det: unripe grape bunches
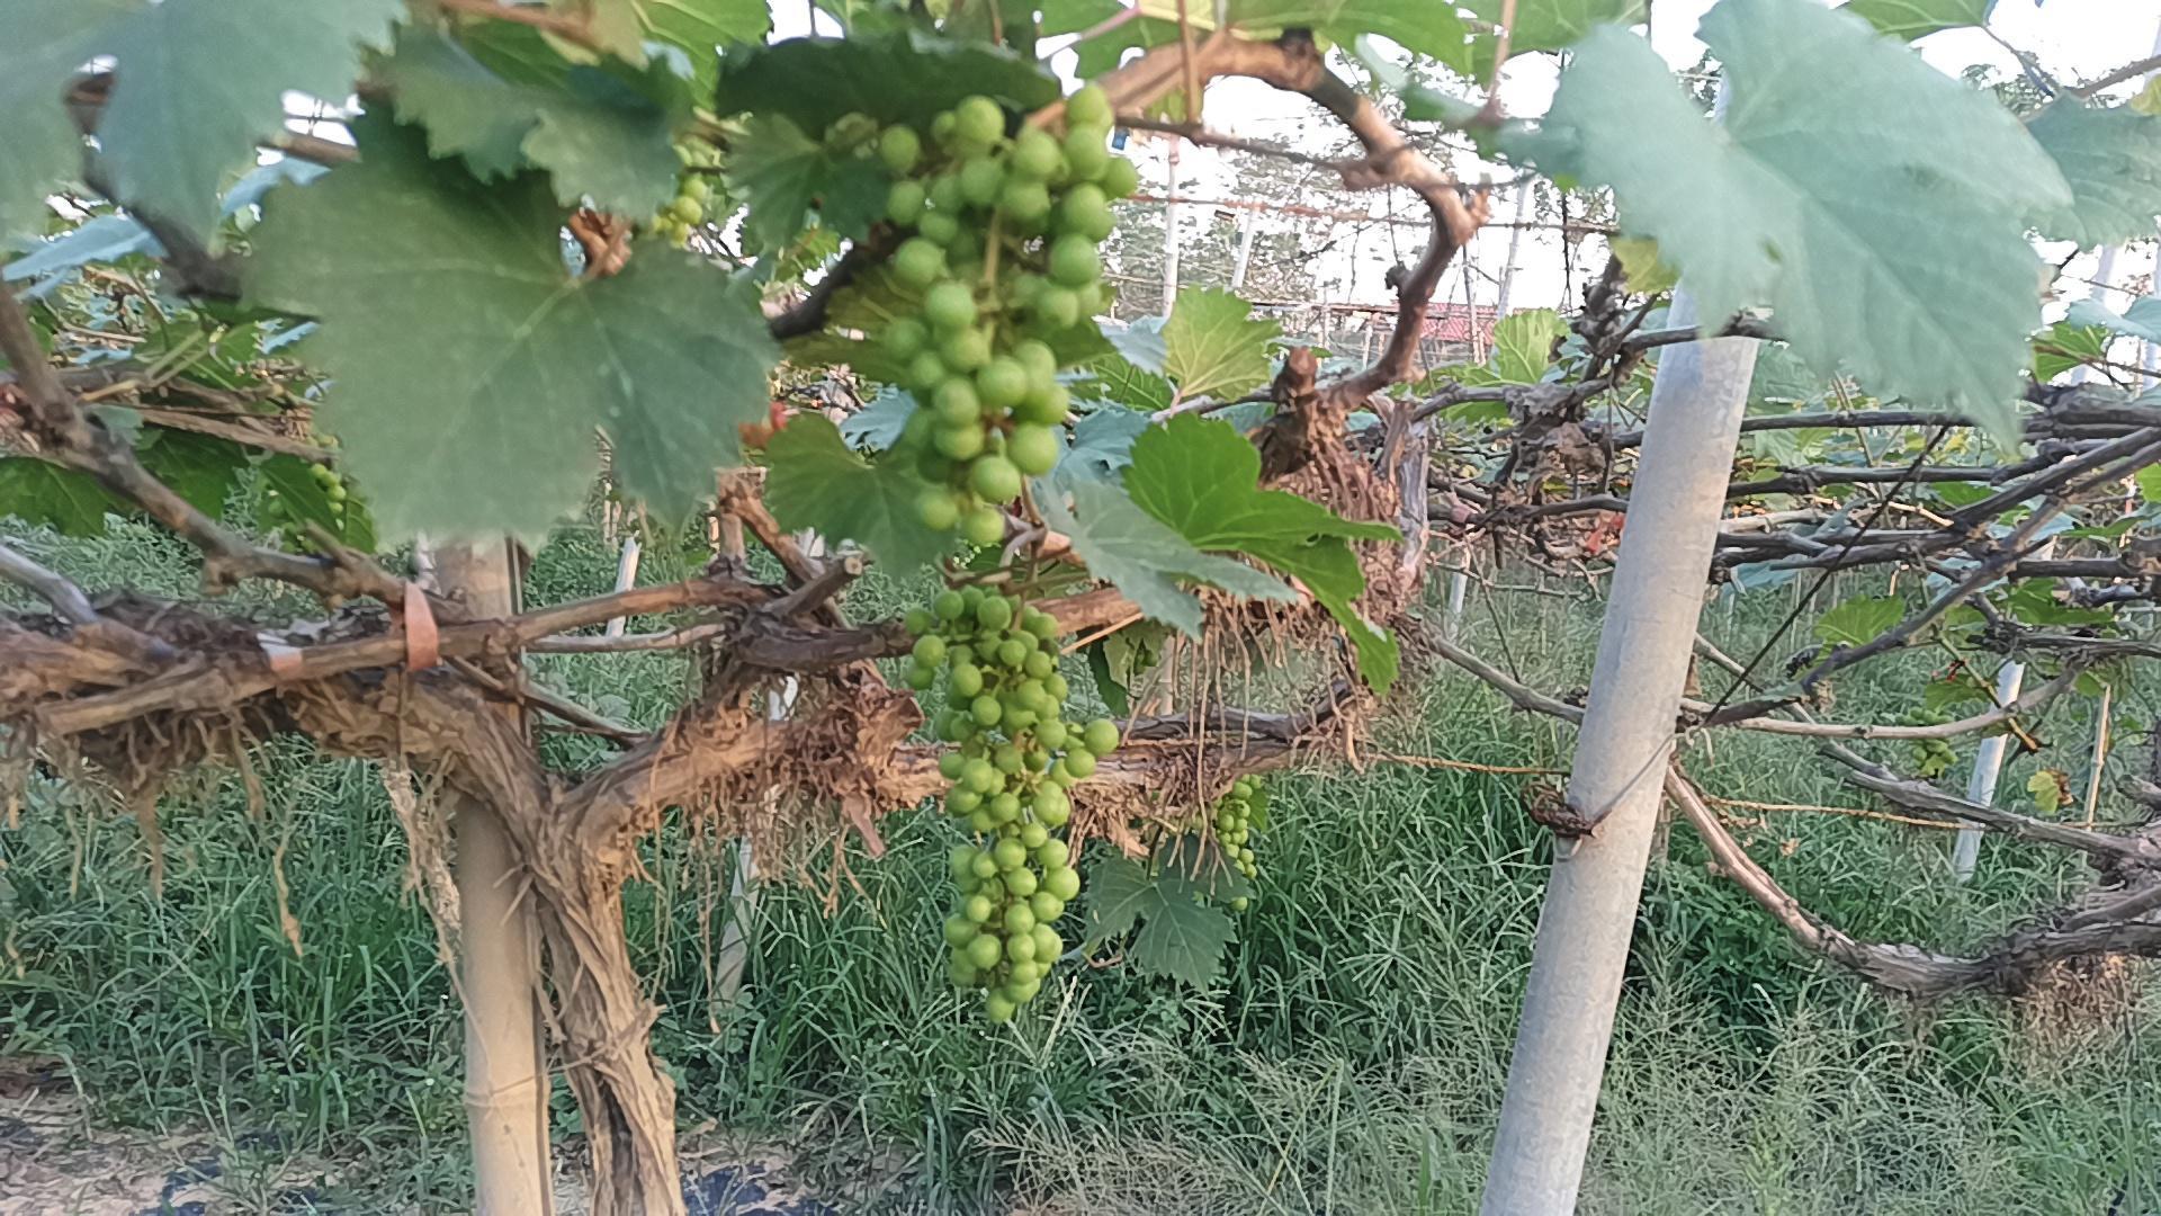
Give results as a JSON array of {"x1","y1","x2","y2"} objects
[
  {"x1": 260, "y1": 431, "x2": 343, "y2": 553},
  {"x1": 878, "y1": 86, "x2": 1137, "y2": 545},
  {"x1": 647, "y1": 134, "x2": 724, "y2": 247},
  {"x1": 1897, "y1": 709, "x2": 1956, "y2": 778},
  {"x1": 906, "y1": 585, "x2": 1119, "y2": 1021},
  {"x1": 1214, "y1": 775, "x2": 1258, "y2": 911}
]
